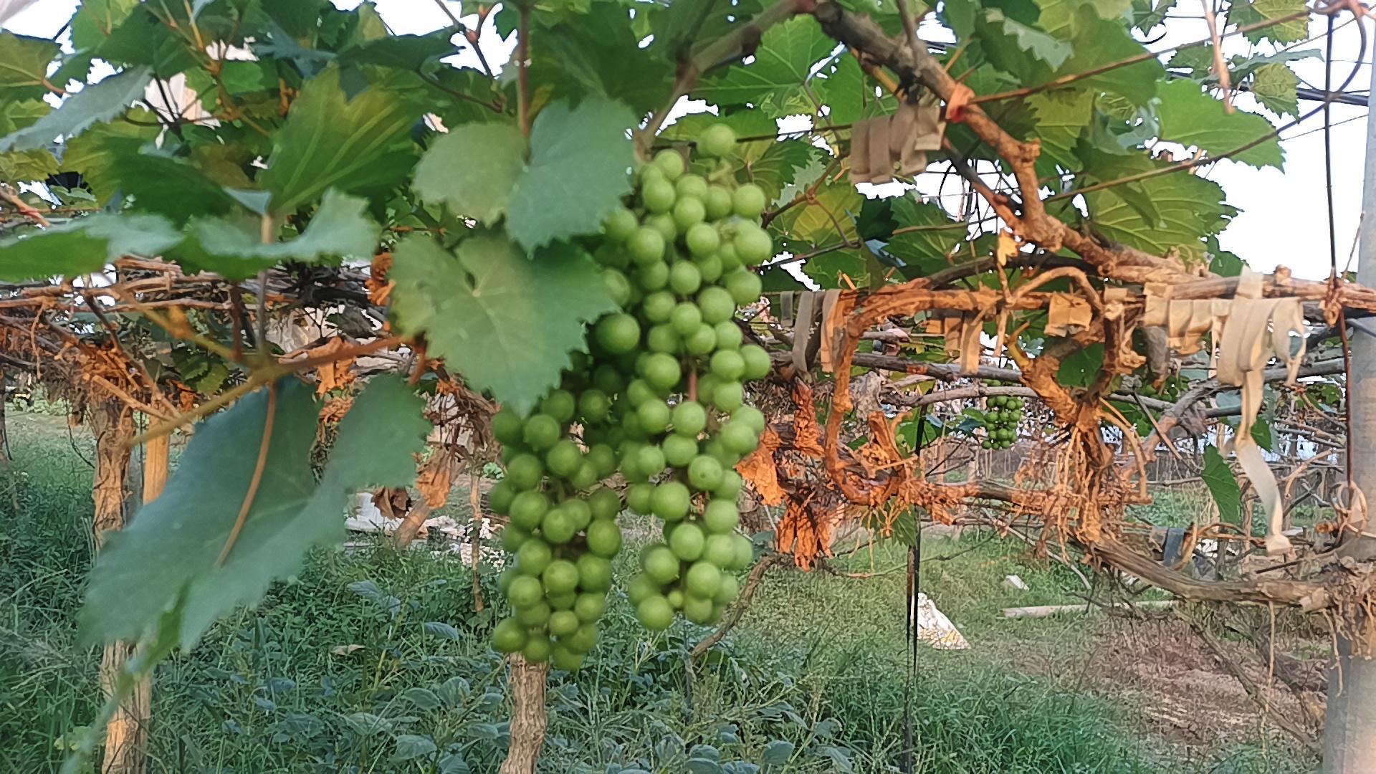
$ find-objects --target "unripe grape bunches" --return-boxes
[489,351,623,670]
[593,123,773,629]
[982,363,1024,450]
